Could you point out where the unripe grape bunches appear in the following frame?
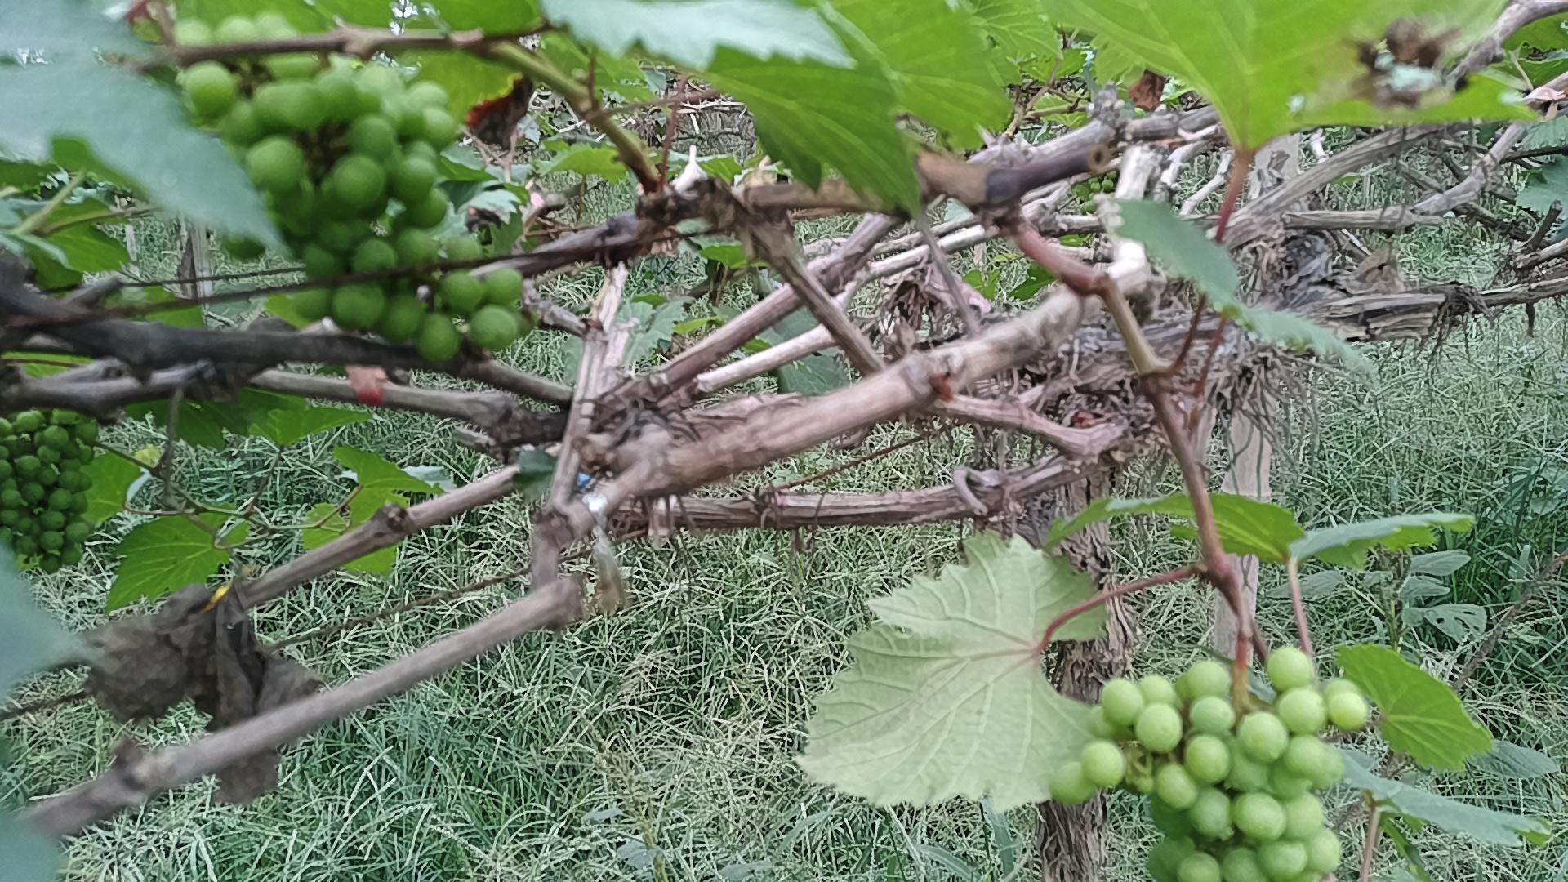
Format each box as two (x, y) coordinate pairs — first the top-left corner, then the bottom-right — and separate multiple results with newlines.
(1050, 646), (1368, 880)
(171, 13), (537, 361)
(0, 406), (97, 572)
